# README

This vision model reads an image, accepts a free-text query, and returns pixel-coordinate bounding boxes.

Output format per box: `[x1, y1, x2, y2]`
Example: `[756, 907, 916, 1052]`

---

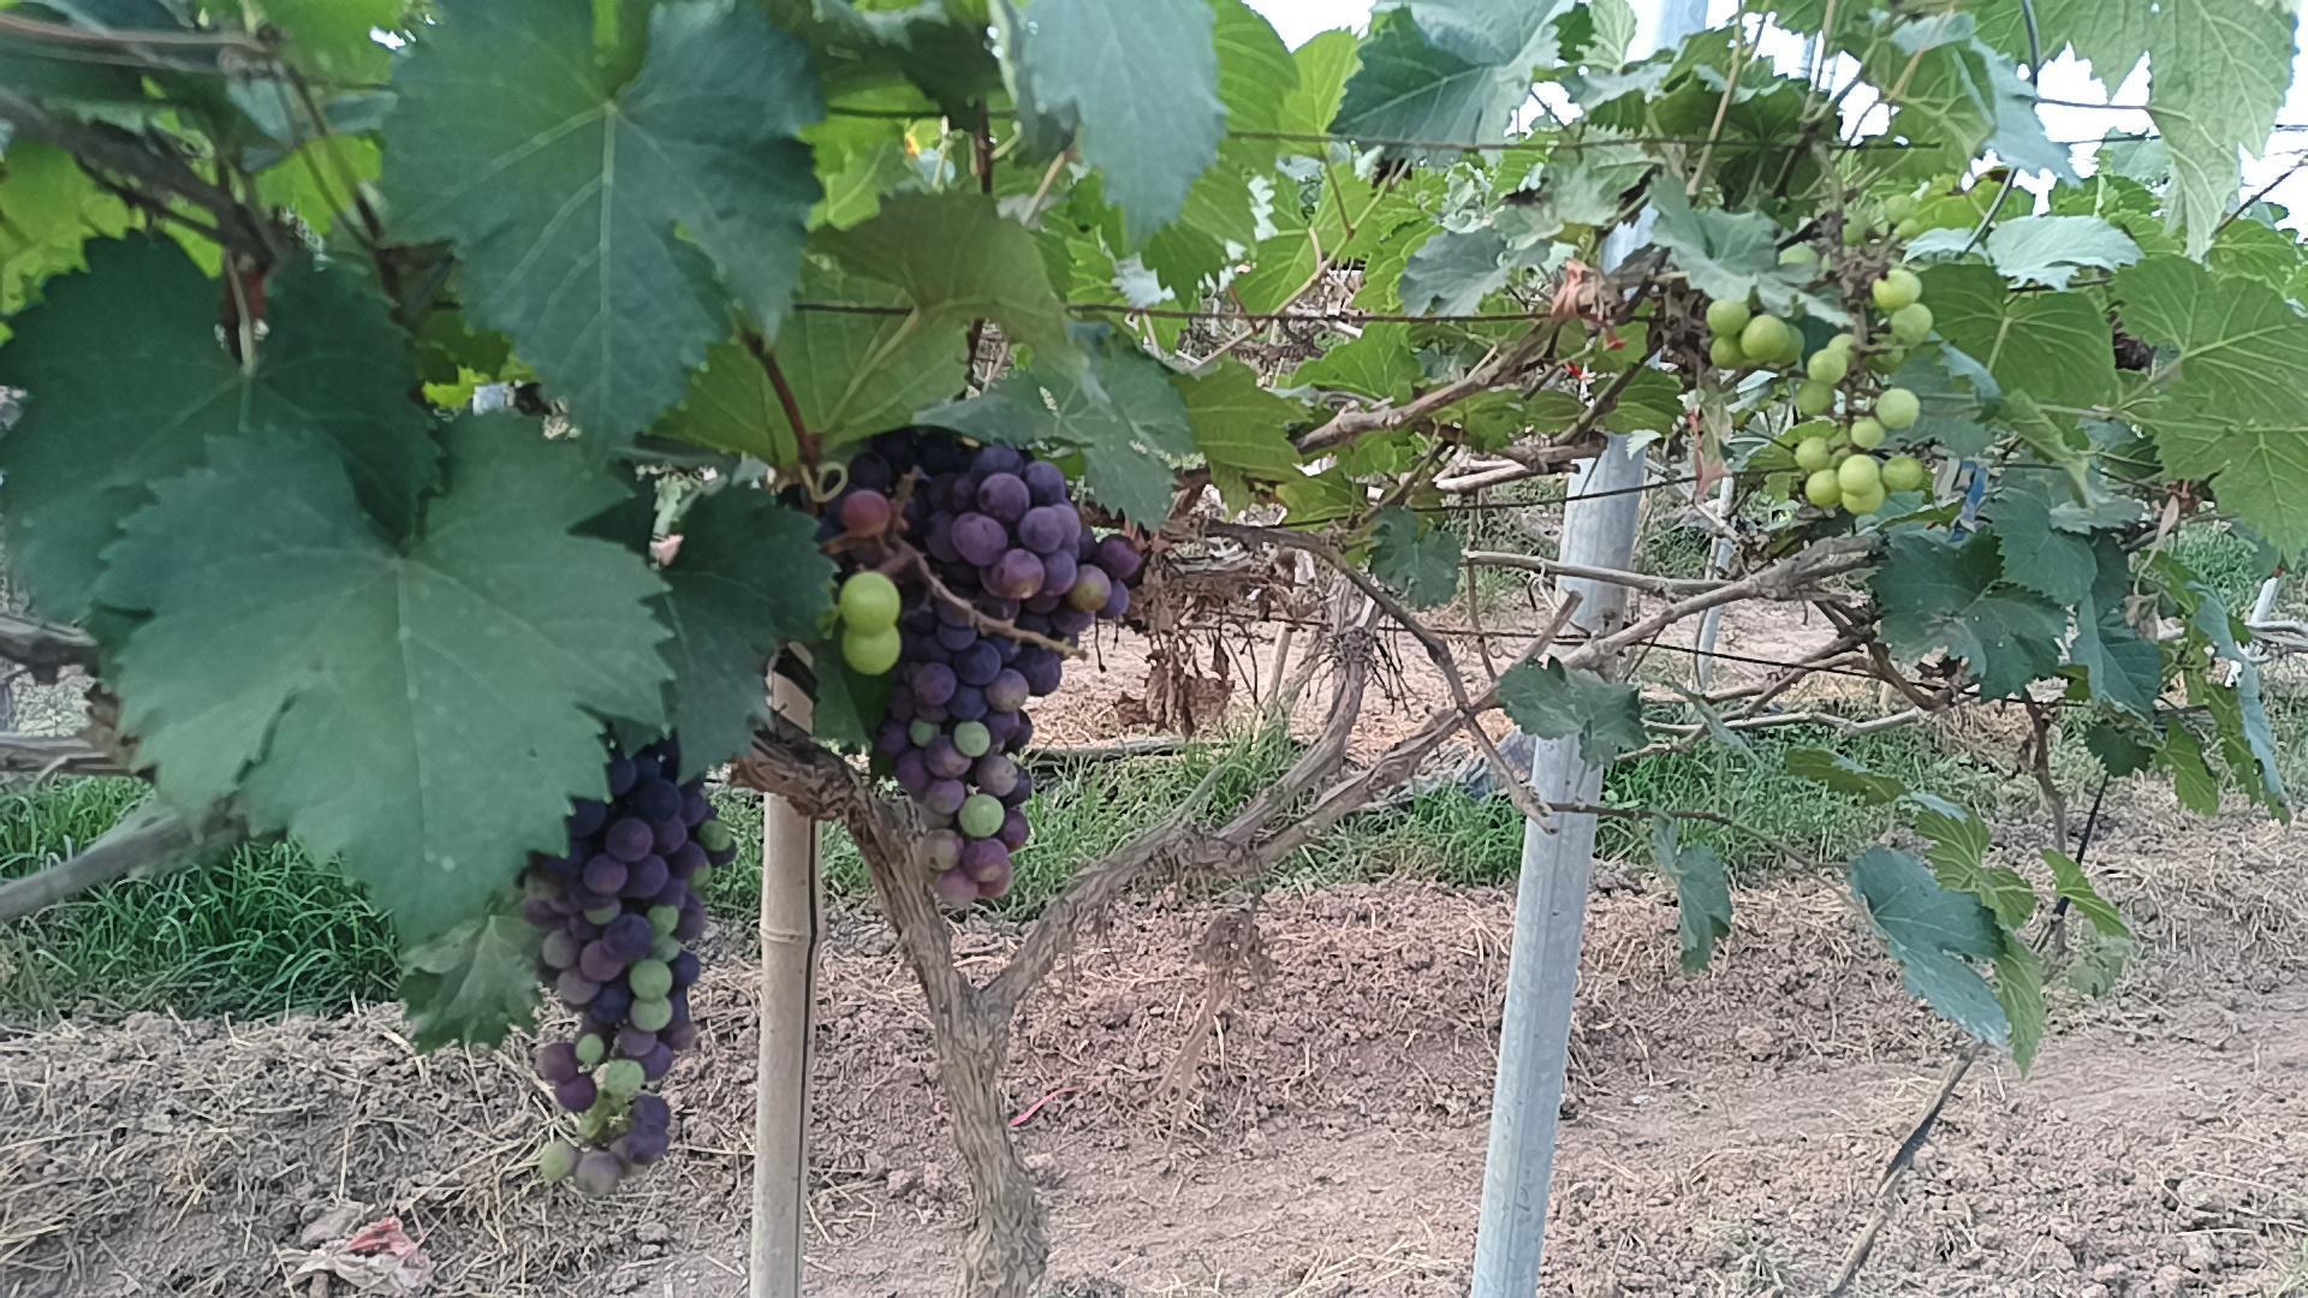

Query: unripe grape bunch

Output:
[1706, 269, 1932, 514]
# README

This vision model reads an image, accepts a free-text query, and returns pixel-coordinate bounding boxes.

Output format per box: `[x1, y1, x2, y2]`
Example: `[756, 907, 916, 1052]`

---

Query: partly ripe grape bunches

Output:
[524, 739, 733, 1193]
[821, 428, 1143, 907]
